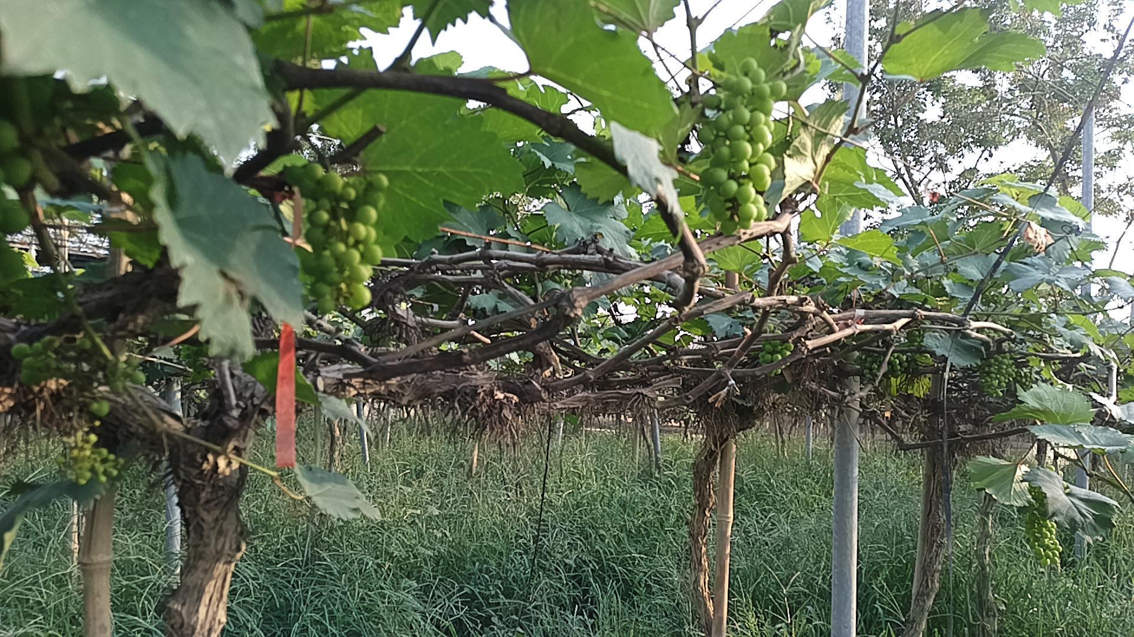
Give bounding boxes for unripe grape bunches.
[285,163,388,313]
[1025,501,1062,567]
[754,323,794,377]
[979,353,1017,398]
[0,119,31,287]
[700,58,784,232]
[11,335,144,484]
